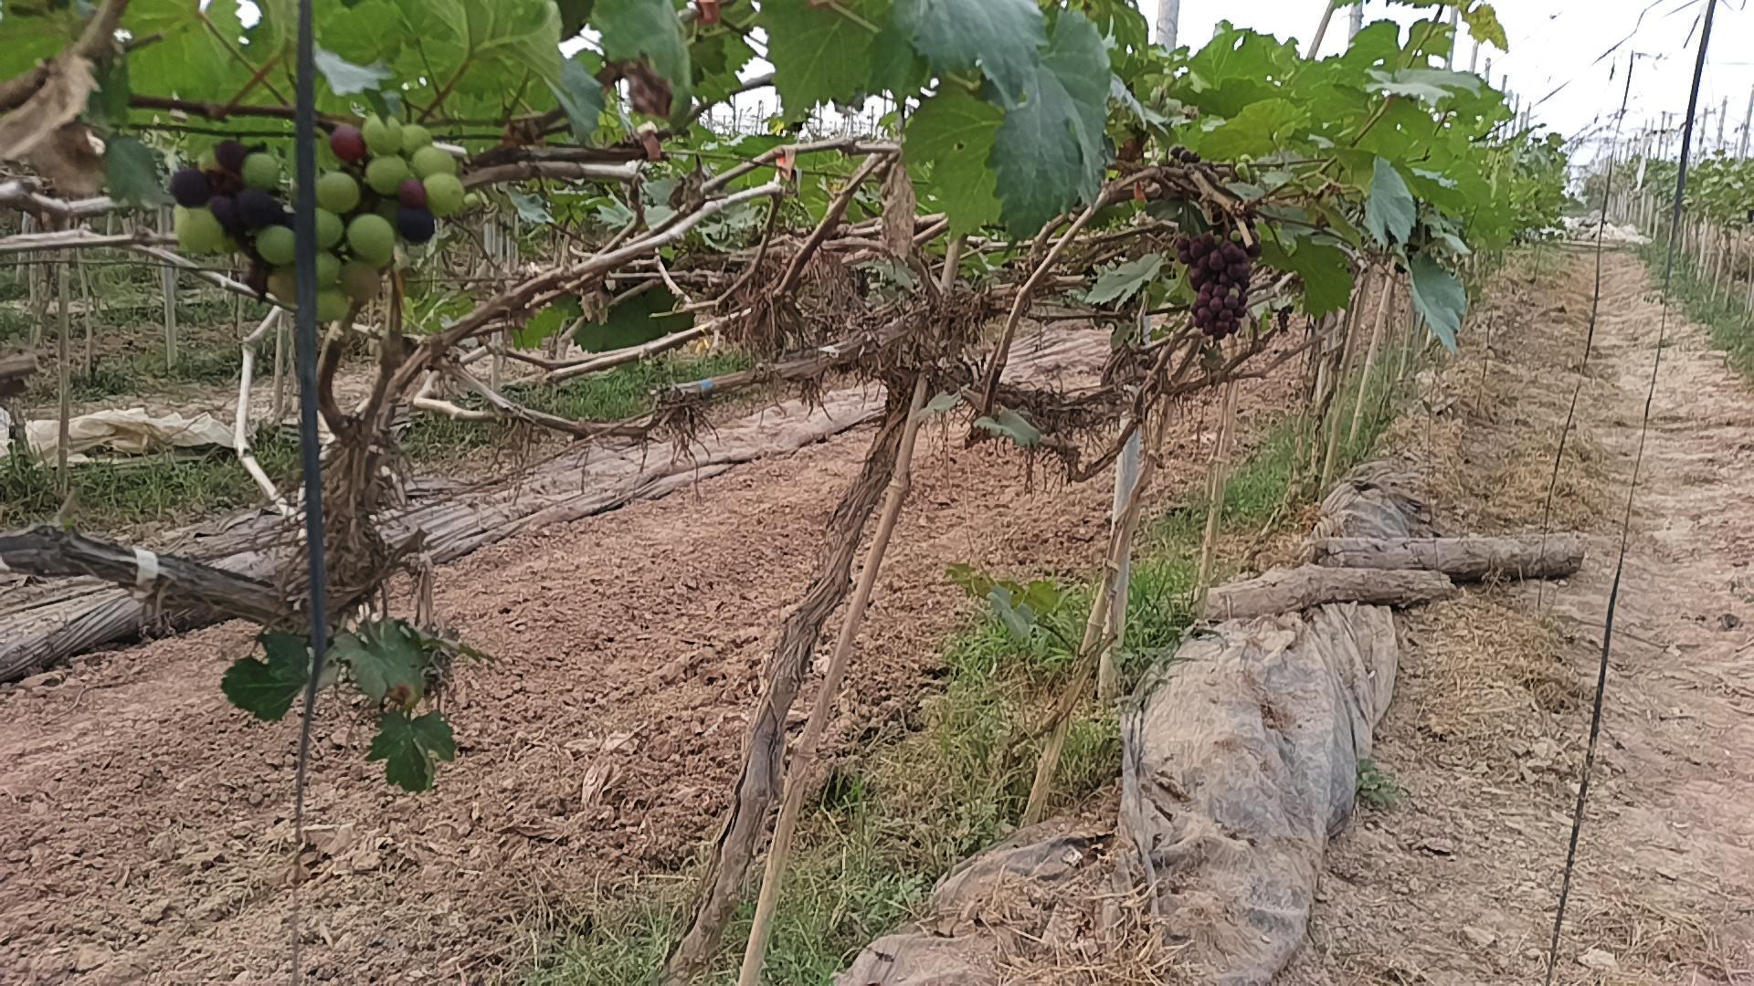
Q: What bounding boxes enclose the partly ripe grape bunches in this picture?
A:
[1113,129,1285,187]
[164,110,470,324]
[1177,220,1262,341]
